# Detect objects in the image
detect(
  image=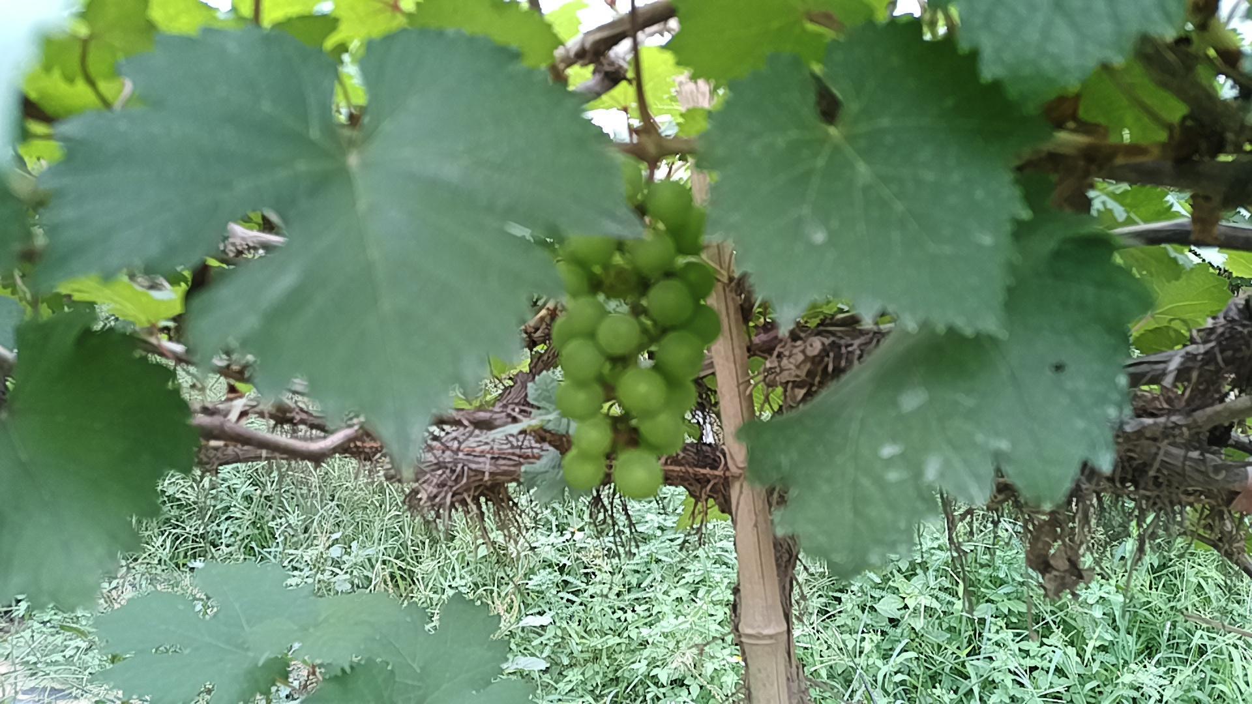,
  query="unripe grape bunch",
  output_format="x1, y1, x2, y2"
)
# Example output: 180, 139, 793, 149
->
551, 161, 722, 499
